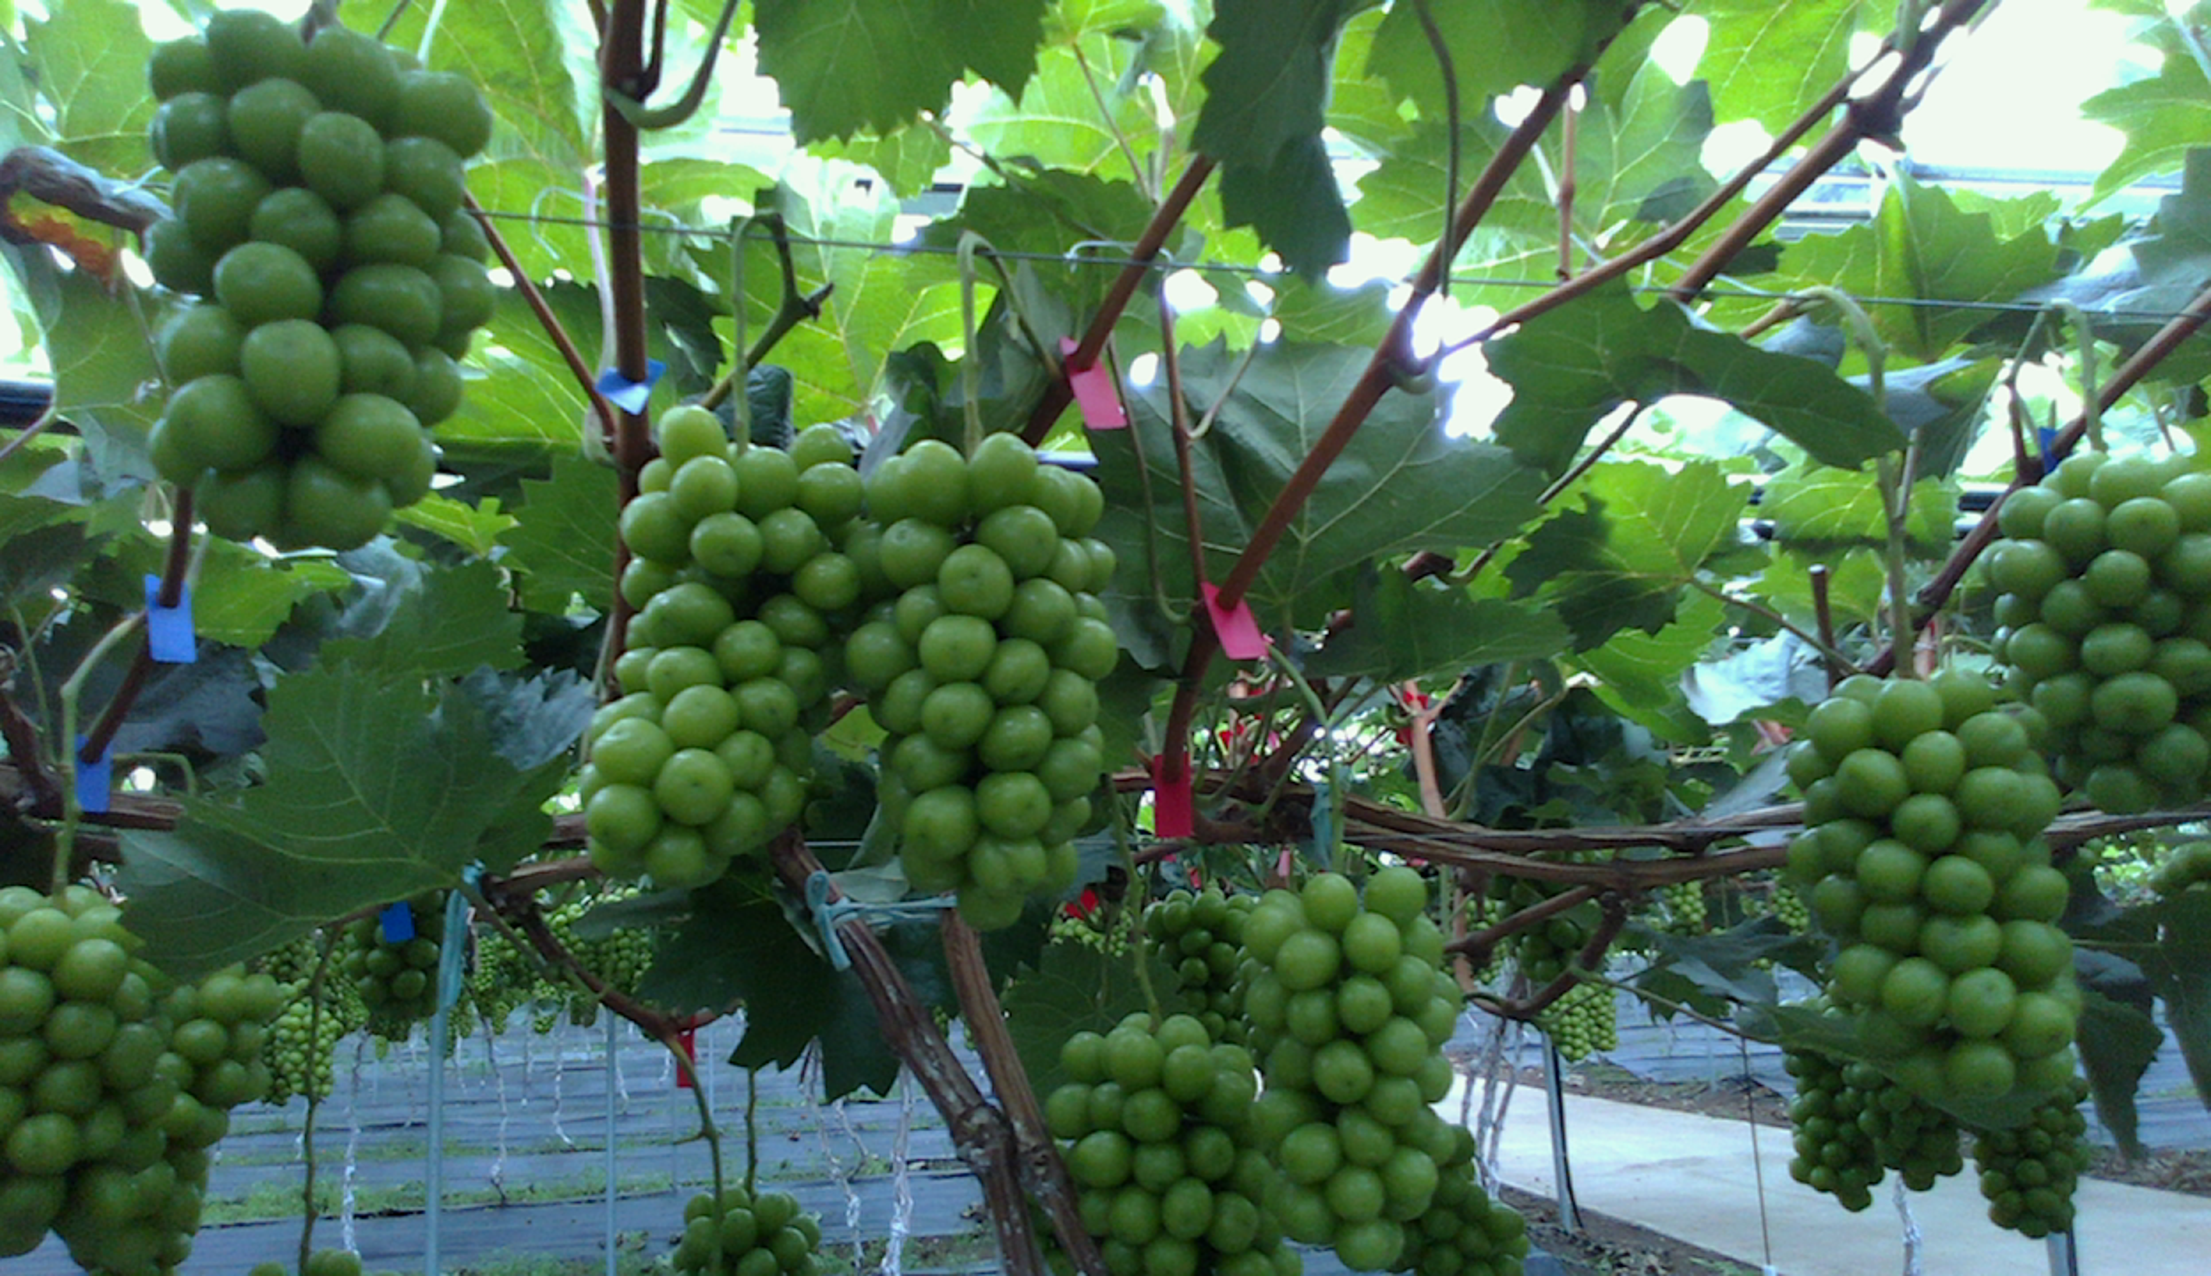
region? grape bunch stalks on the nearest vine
[1265,642,1343,874]
[1098,773,1160,1028]
[958,230,1061,464]
[1825,289,1915,677]
[50,606,151,893]
[730,211,767,459]
[2055,298,2105,450]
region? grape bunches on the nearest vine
[1242,867,1463,1265]
[145,9,496,548]
[581,406,866,886]
[1784,672,2080,1102]
[1047,1010,1302,1269]
[845,432,1118,927]
[1982,450,2209,819]
[2,884,159,1255]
